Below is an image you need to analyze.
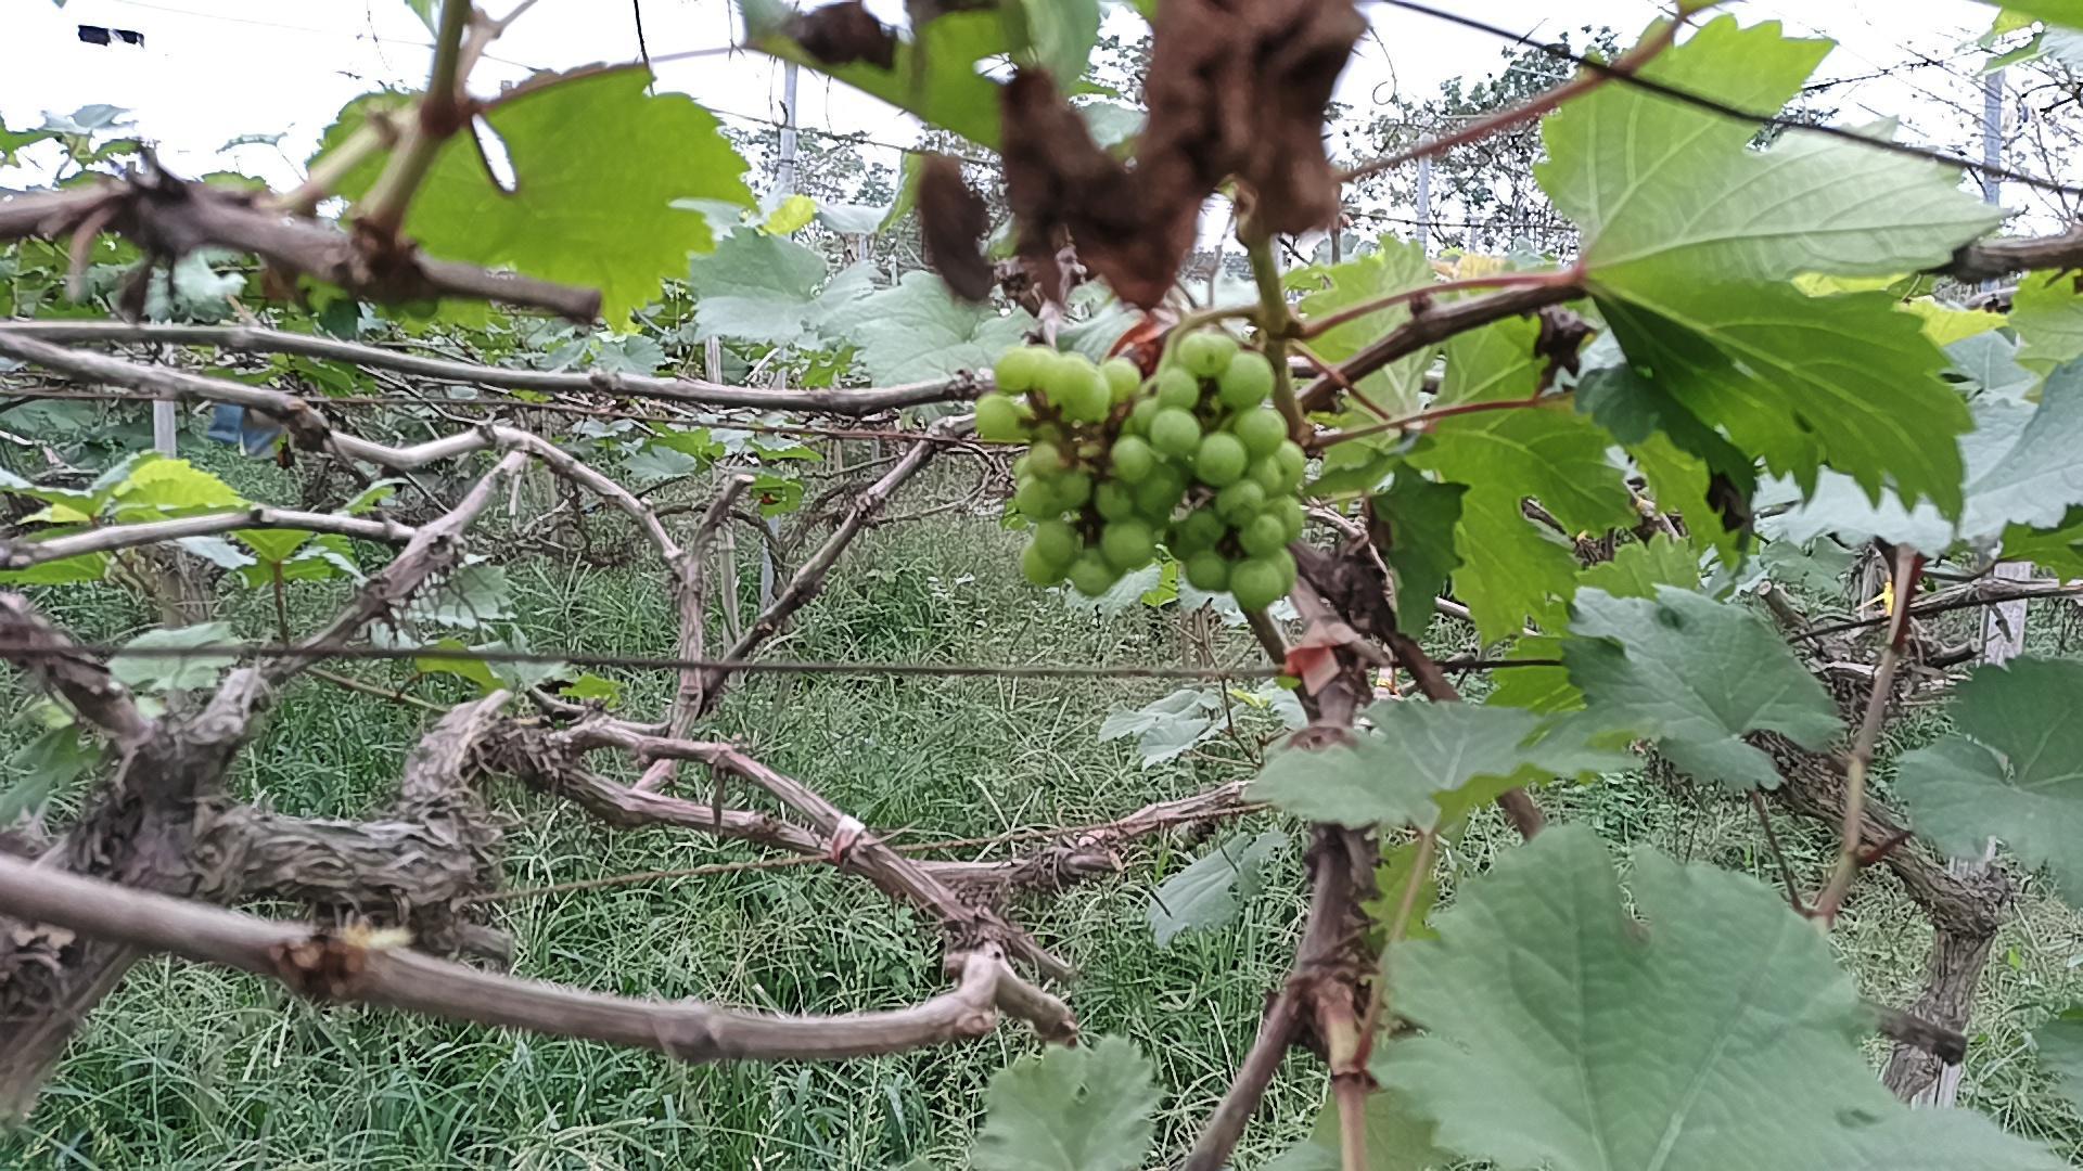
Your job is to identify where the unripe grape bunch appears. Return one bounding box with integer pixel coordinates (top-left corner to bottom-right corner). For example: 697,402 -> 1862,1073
976,329 -> 1304,610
